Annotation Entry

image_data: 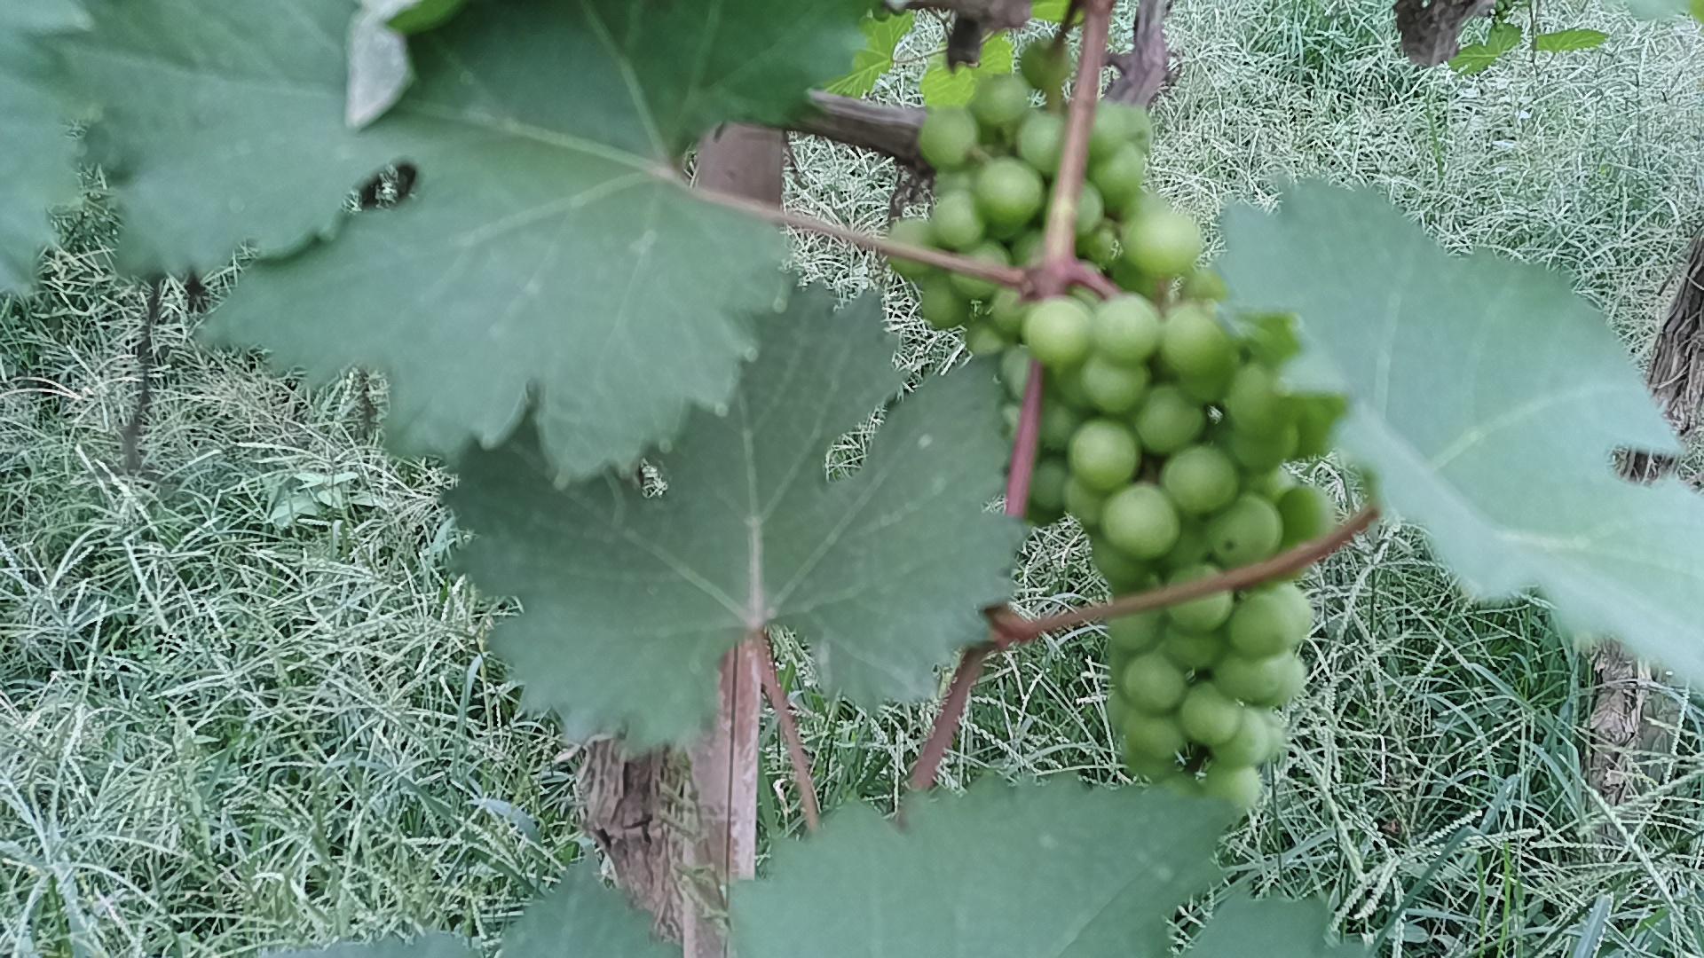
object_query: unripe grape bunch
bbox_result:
[884,36,1345,807]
